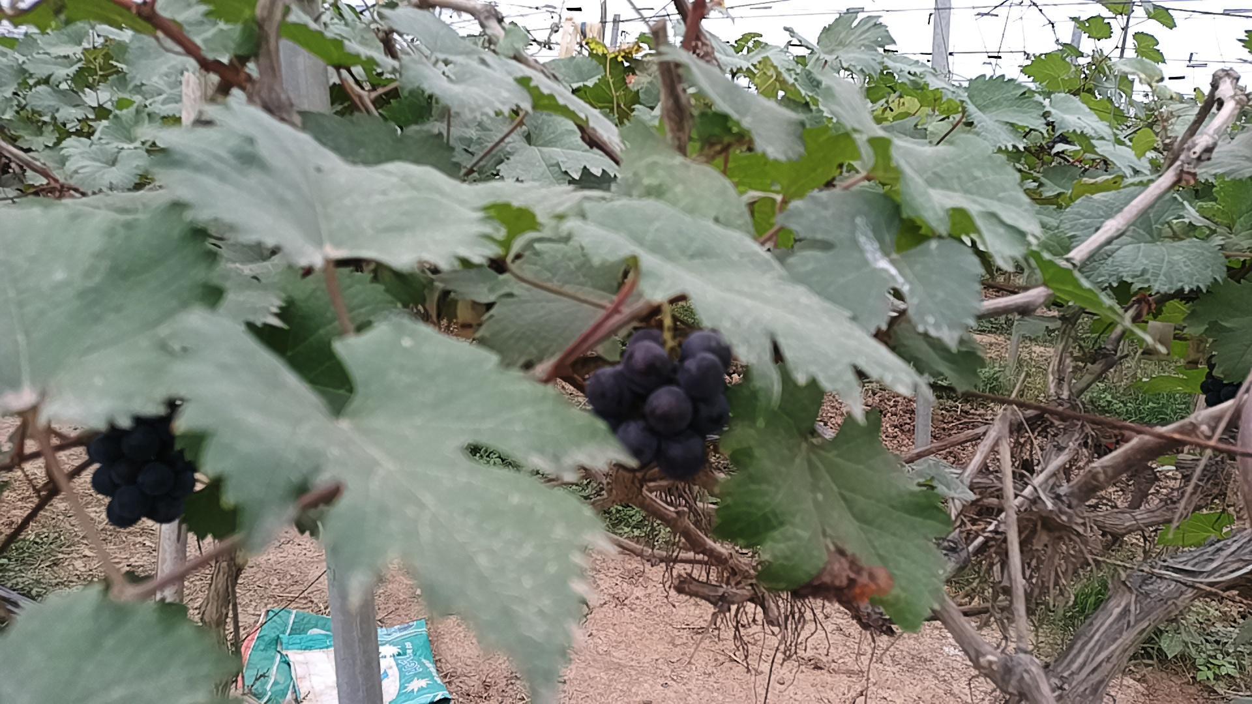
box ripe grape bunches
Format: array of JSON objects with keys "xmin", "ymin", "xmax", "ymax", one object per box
[
  {"xmin": 87, "ymin": 400, "xmax": 196, "ymax": 527},
  {"xmin": 584, "ymin": 327, "xmax": 732, "ymax": 480}
]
